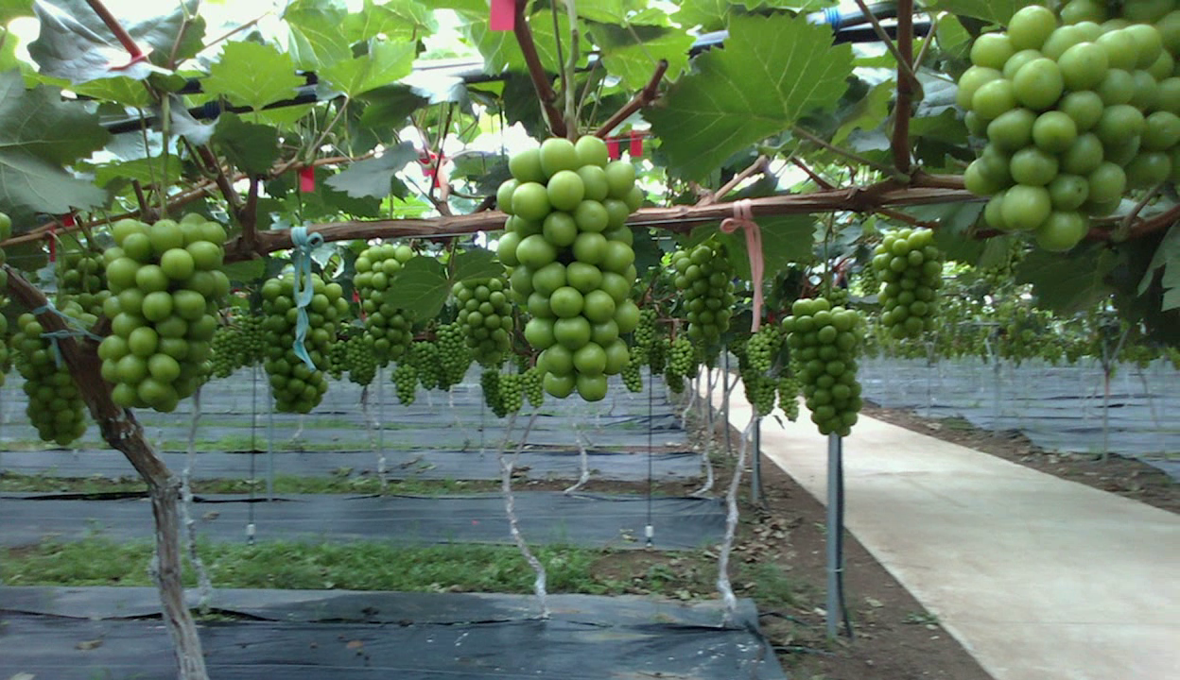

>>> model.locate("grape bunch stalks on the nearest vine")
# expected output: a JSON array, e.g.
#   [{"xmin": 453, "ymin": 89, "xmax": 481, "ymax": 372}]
[
  {"xmin": 561, "ymin": 1, "xmax": 579, "ymax": 144},
  {"xmin": 159, "ymin": 91, "xmax": 169, "ymax": 220}
]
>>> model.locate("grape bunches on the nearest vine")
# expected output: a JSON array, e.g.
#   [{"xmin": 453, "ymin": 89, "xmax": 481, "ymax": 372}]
[
  {"xmin": 497, "ymin": 134, "xmax": 644, "ymax": 402},
  {"xmin": 98, "ymin": 212, "xmax": 229, "ymax": 414},
  {"xmin": 954, "ymin": 0, "xmax": 1179, "ymax": 251}
]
